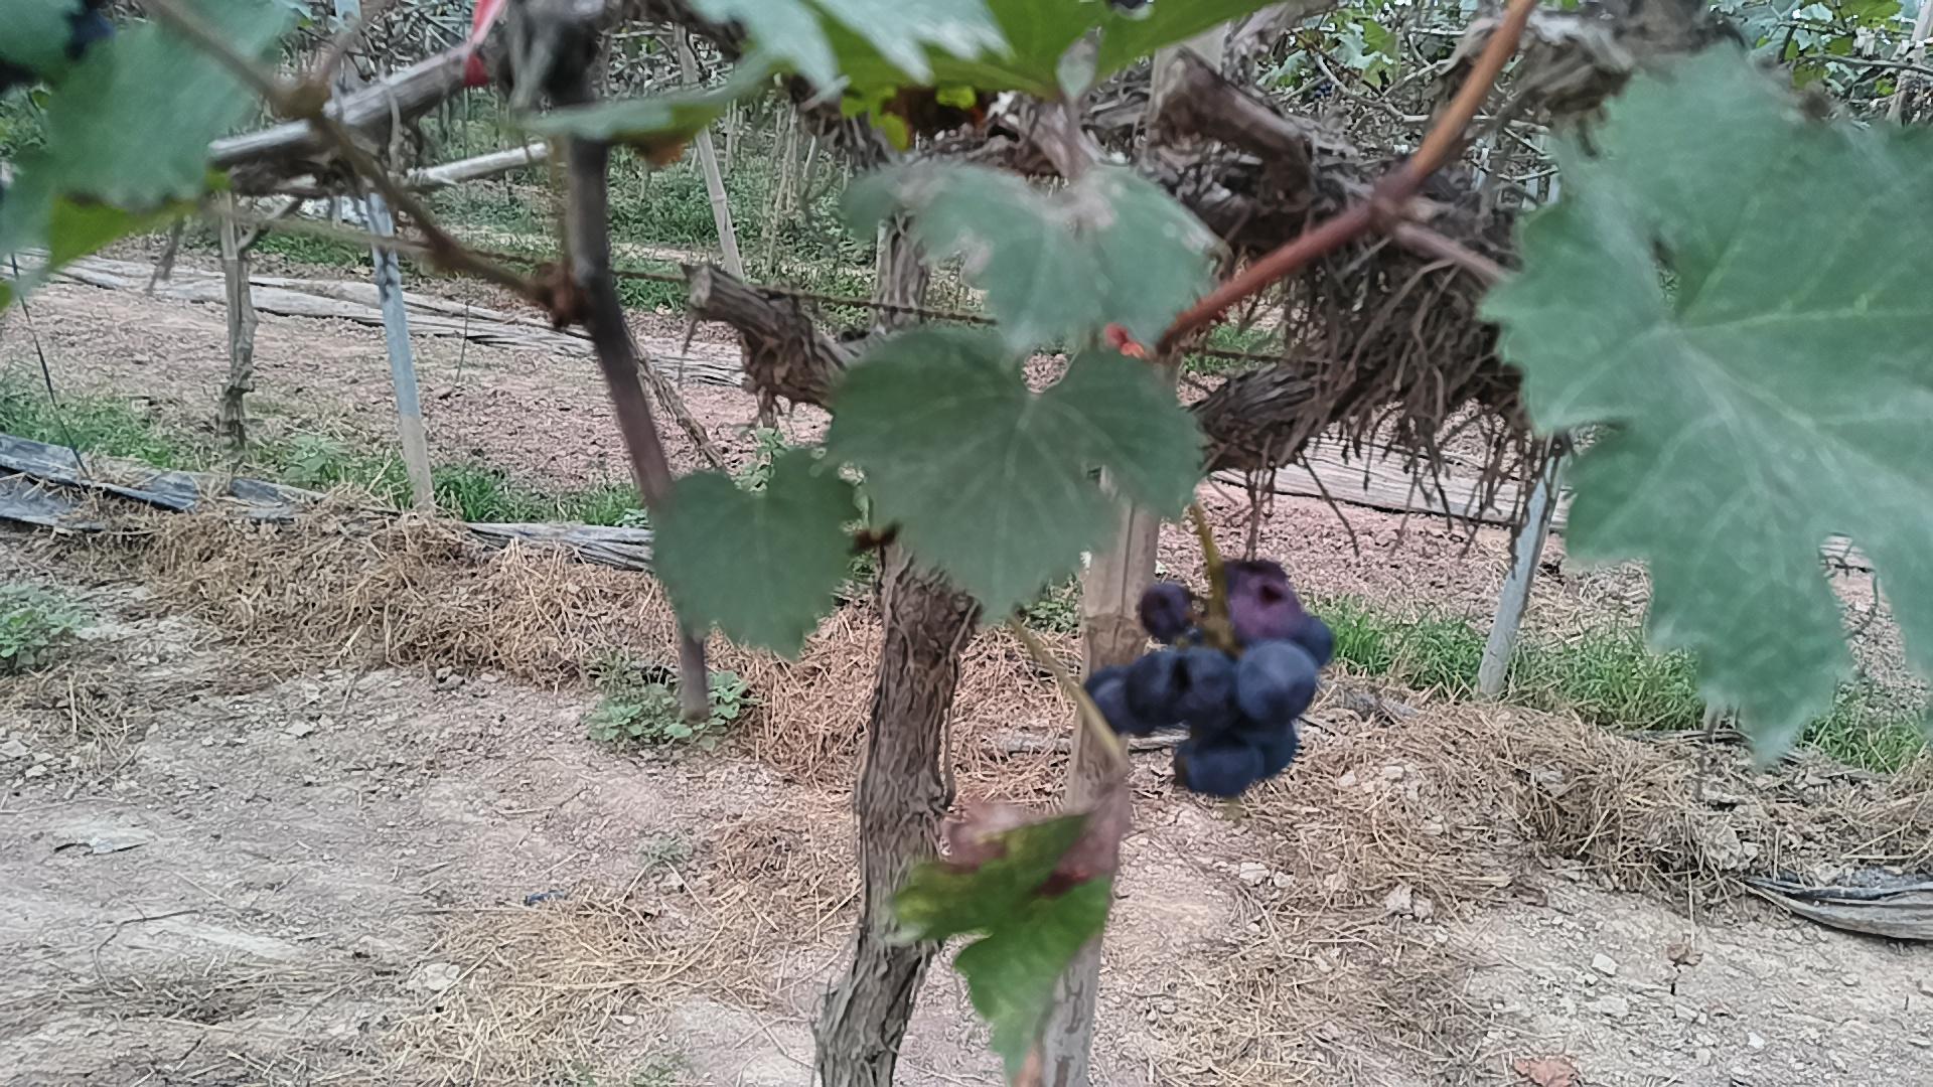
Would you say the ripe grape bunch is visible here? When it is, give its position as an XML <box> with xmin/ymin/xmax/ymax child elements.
<box><xmin>1085</xmin><ymin>560</ymin><xmax>1333</xmax><ymax>797</ymax></box>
